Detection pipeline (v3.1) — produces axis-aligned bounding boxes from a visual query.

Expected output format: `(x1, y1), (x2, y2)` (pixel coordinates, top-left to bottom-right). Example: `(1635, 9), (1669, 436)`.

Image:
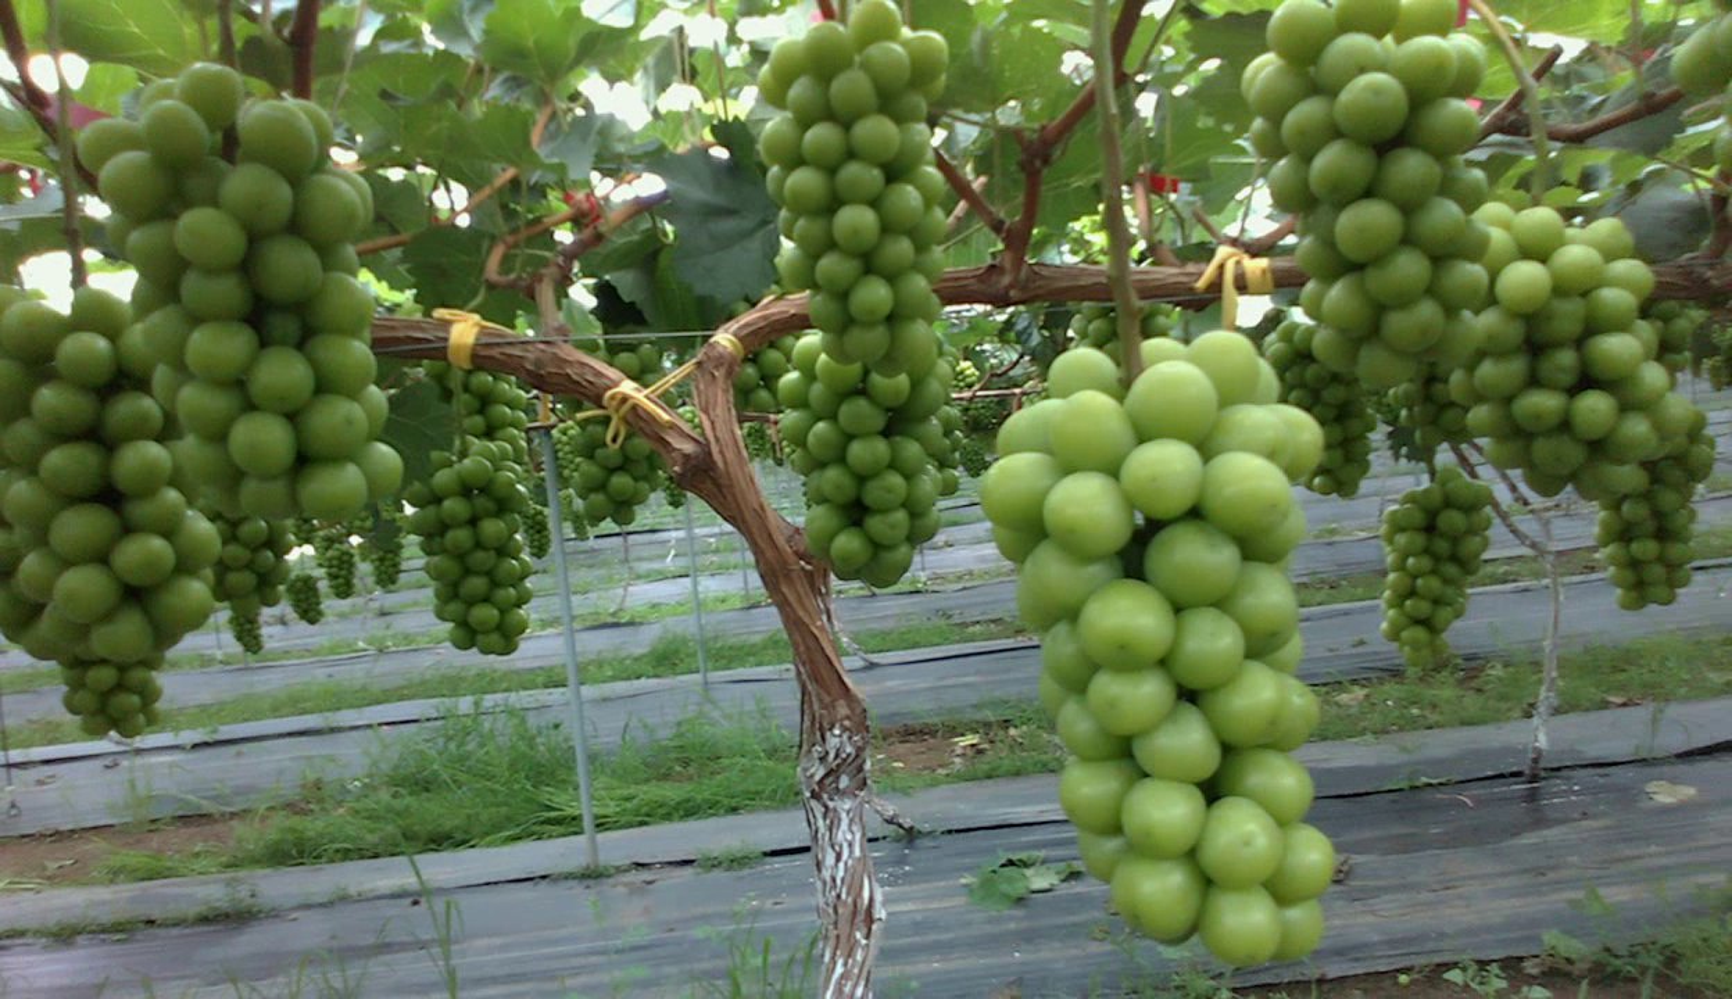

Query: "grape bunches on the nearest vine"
(977, 334), (1336, 971)
(1241, 0), (1489, 390)
(1449, 201), (1696, 505)
(76, 62), (404, 522)
(0, 286), (221, 665)
(777, 334), (952, 592)
(756, 0), (949, 377)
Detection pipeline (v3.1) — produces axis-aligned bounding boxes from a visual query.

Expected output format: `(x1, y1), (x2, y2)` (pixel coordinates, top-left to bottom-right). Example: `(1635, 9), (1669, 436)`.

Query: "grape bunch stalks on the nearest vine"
(840, 0), (847, 24)
(1088, 0), (1145, 390)
(1468, 1), (1547, 203)
(46, 0), (86, 289)
(216, 0), (237, 69)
